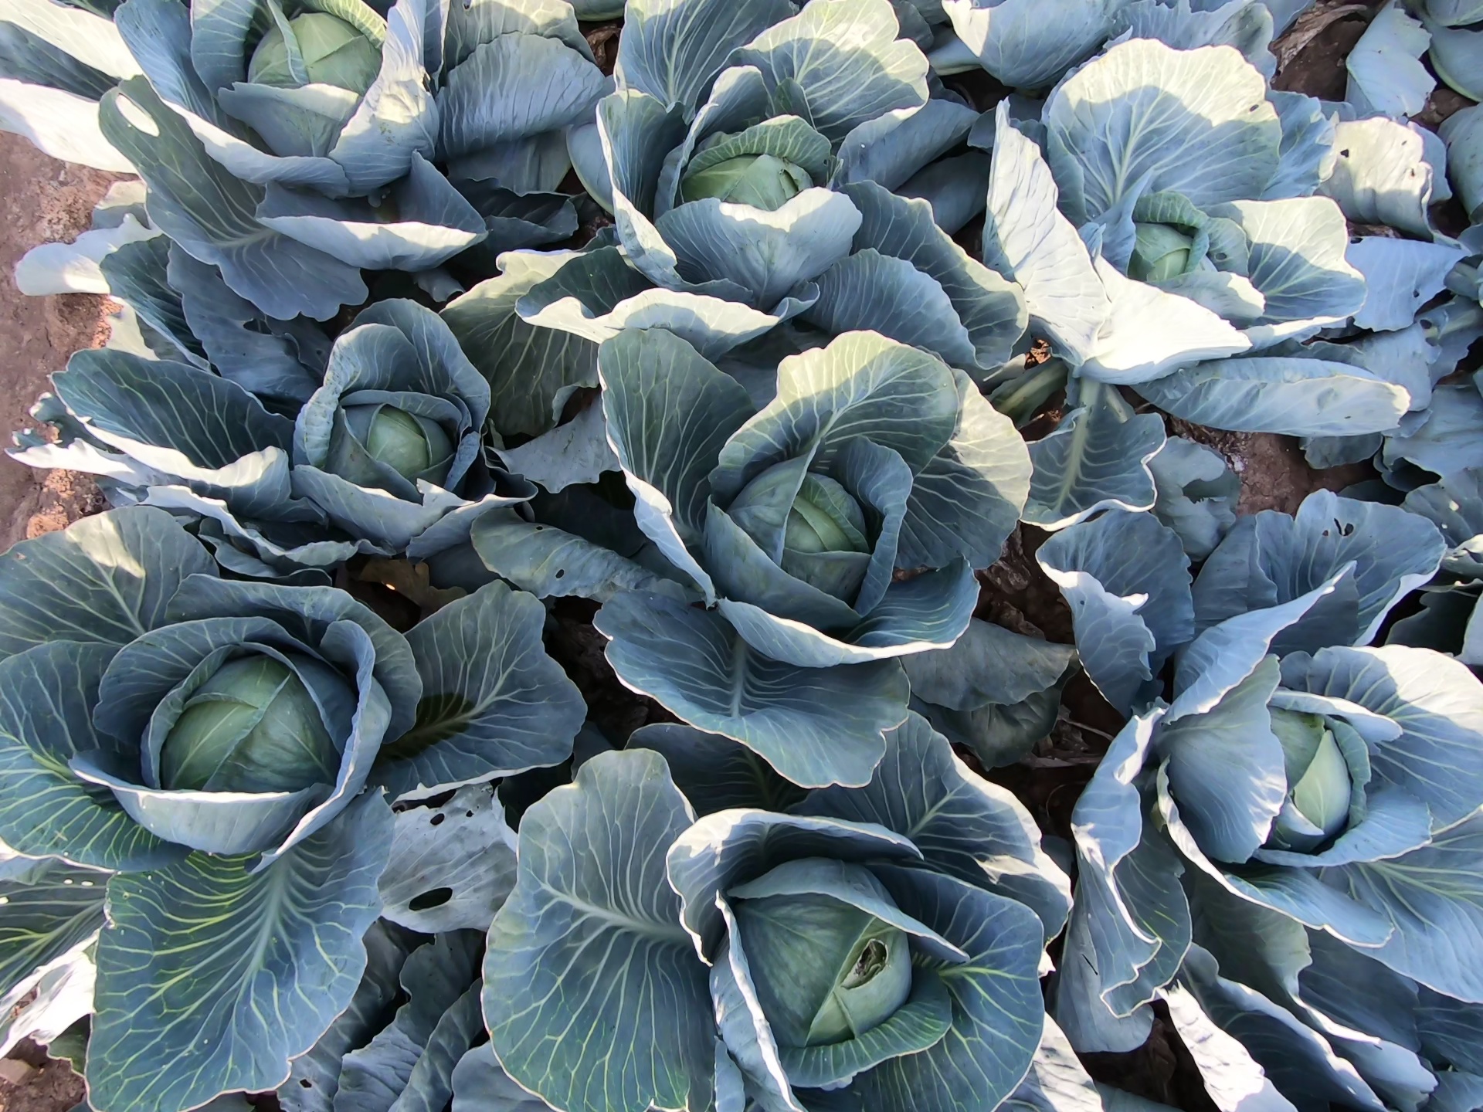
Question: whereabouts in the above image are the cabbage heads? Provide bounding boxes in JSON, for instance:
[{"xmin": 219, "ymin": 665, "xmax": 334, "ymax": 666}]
[
  {"xmin": 1108, "ymin": 216, "xmax": 1217, "ymax": 324},
  {"xmin": 249, "ymin": 10, "xmax": 401, "ymax": 158},
  {"xmin": 1206, "ymin": 697, "xmax": 1361, "ymax": 846},
  {"xmin": 743, "ymin": 470, "xmax": 864, "ymax": 598},
  {"xmin": 148, "ymin": 656, "xmax": 347, "ymax": 820},
  {"xmin": 327, "ymin": 399, "xmax": 448, "ymax": 509},
  {"xmin": 675, "ymin": 134, "xmax": 805, "ymax": 259},
  {"xmin": 731, "ymin": 873, "xmax": 905, "ymax": 1046}
]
